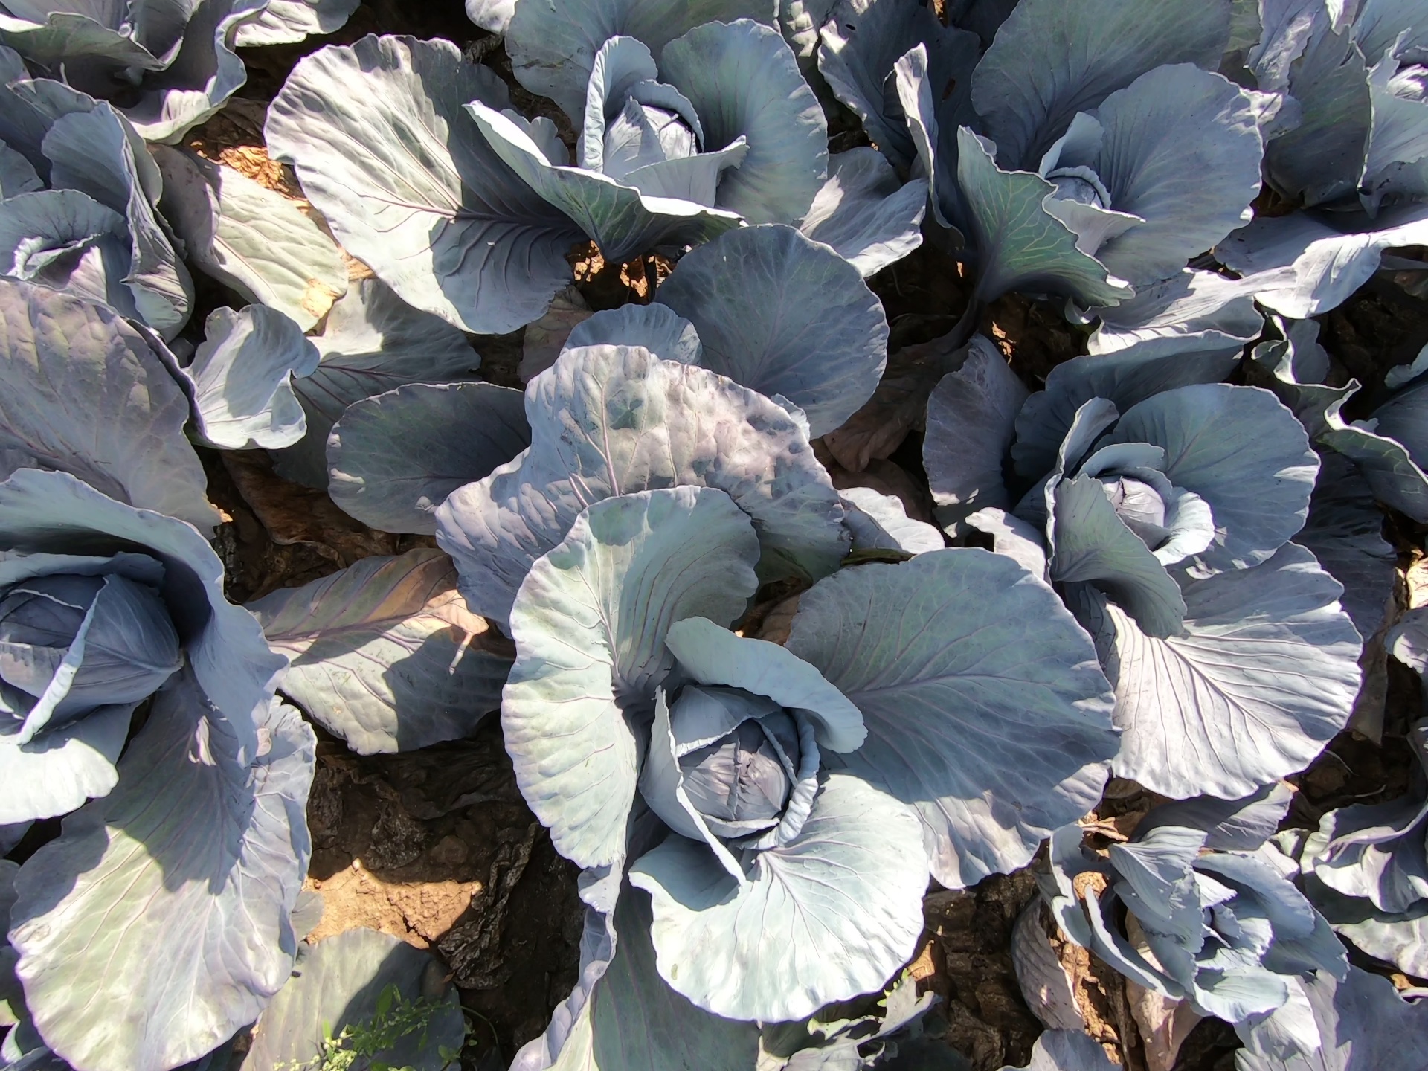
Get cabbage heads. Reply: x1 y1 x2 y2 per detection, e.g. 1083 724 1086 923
1 570 168 711
1328 59 1427 170
4 245 158 371
1033 173 1108 262
1147 878 1212 943
659 688 795 840
1069 472 1169 558
601 100 700 227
